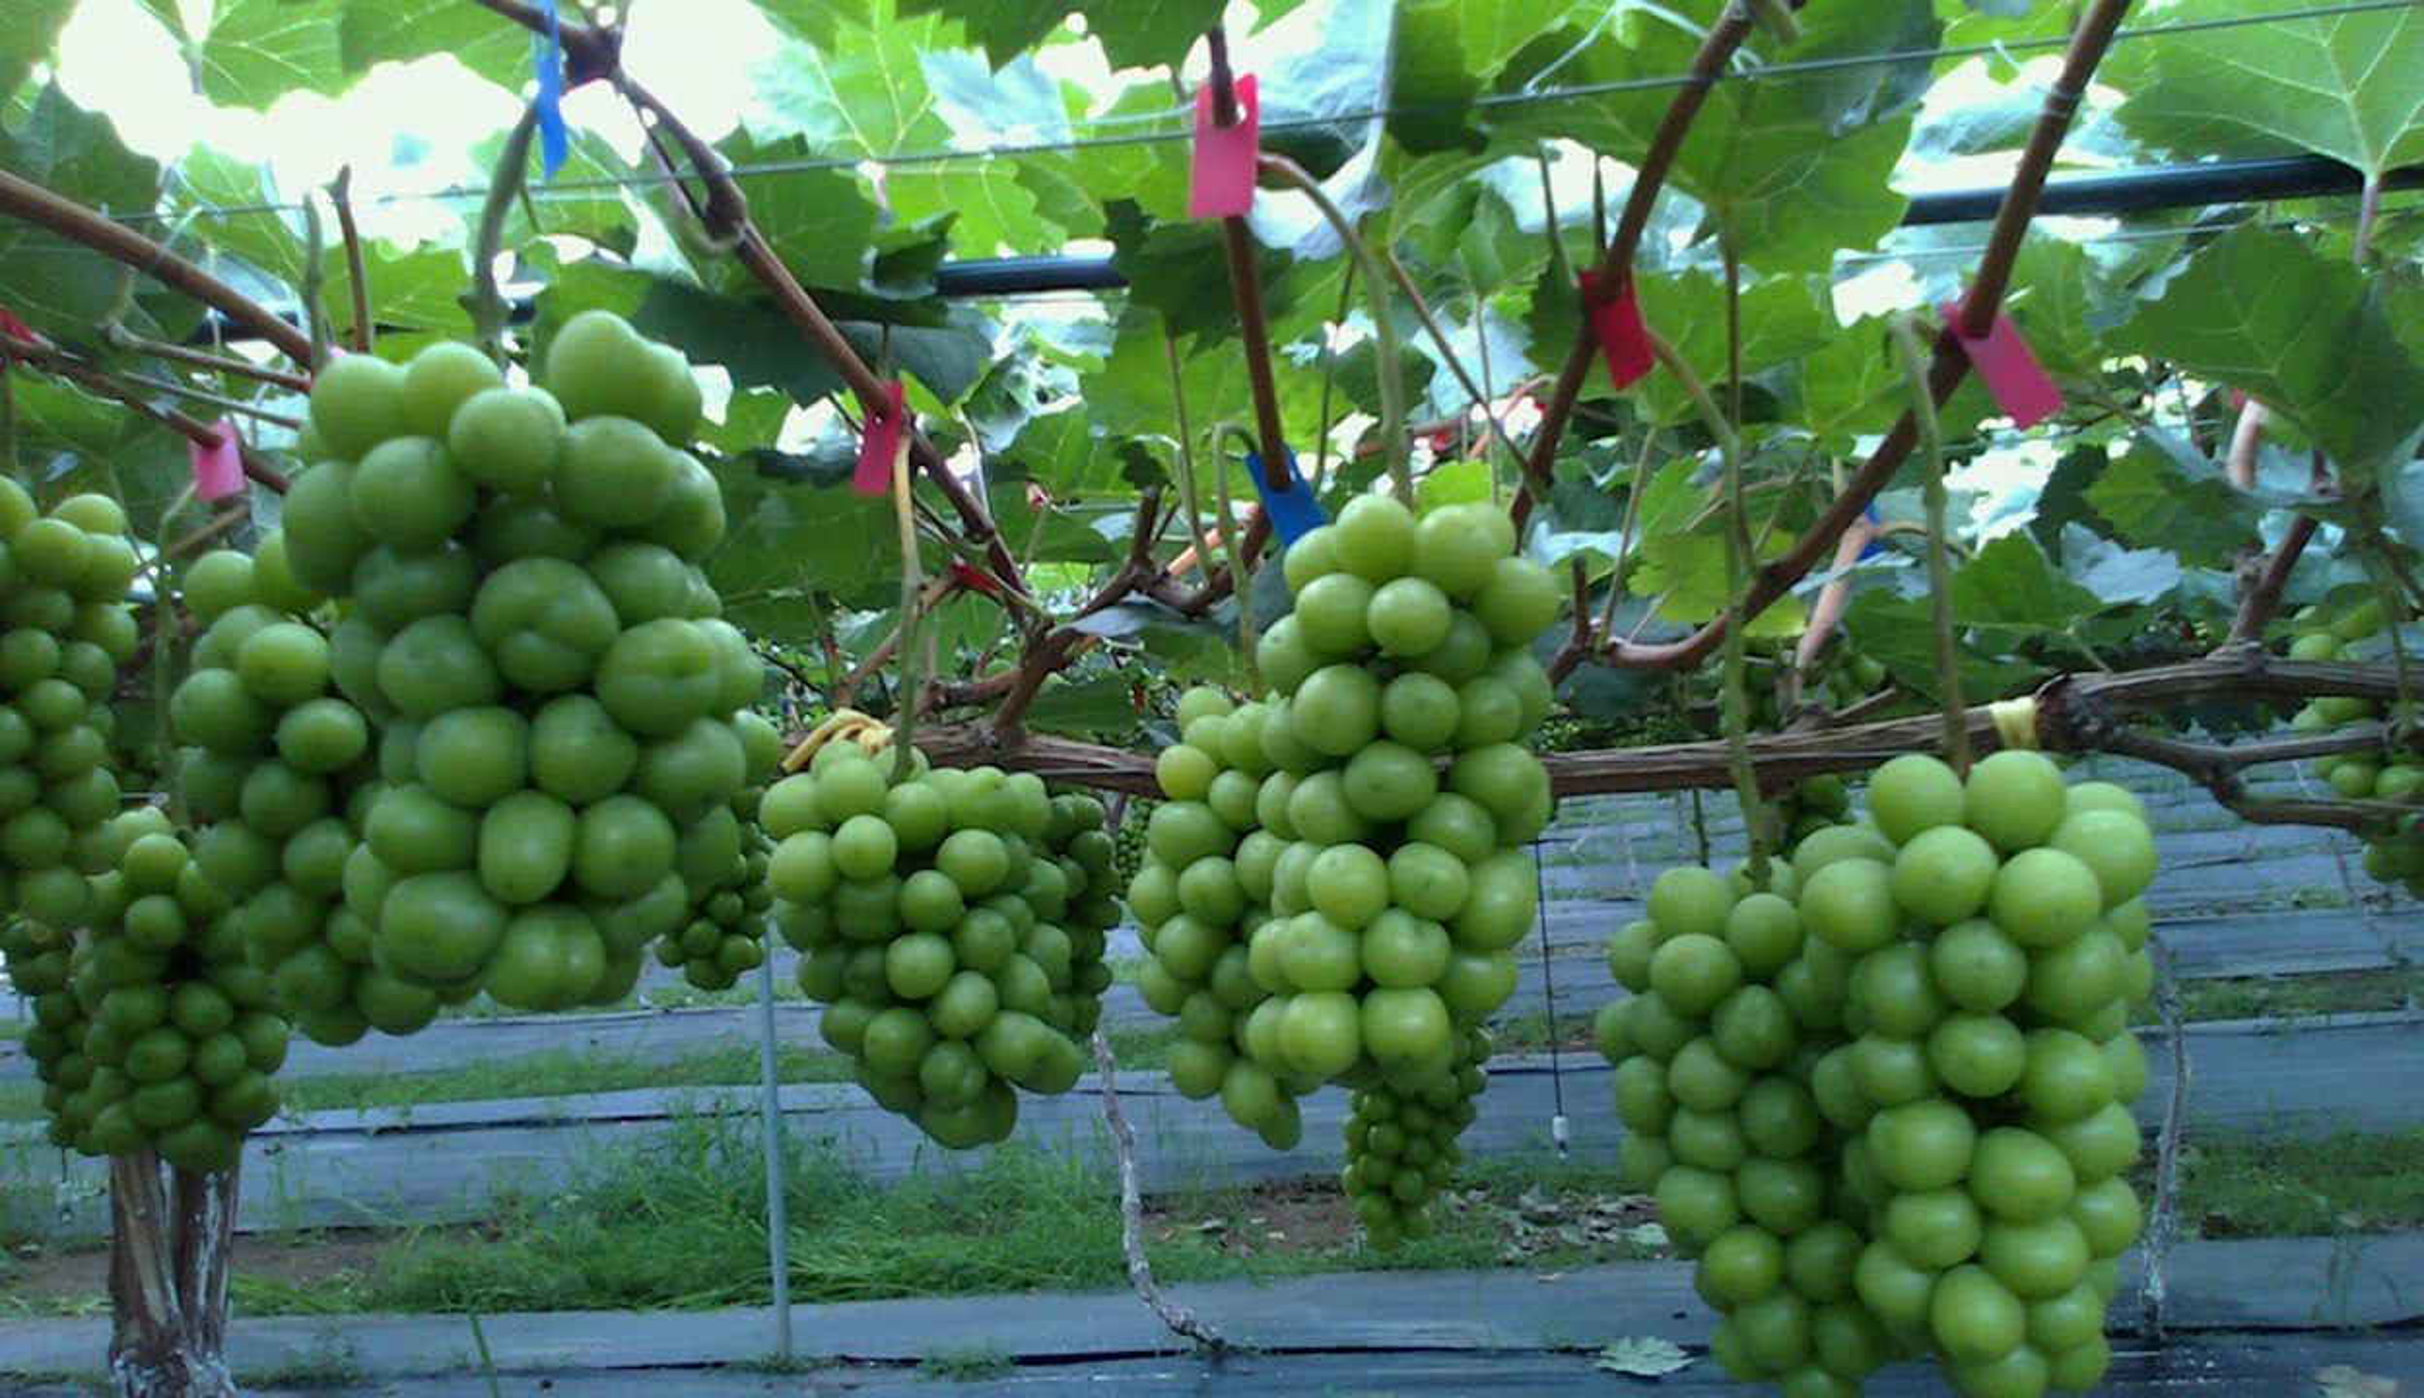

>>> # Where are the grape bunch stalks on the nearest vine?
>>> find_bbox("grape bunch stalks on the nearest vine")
[1313,196,1414,507]
[1210,423,1266,699]
[1666,355,1771,887]
[303,161,371,367]
[151,489,194,833]
[0,346,16,476]
[1892,334,1971,777]
[890,472,926,781]
[458,113,542,363]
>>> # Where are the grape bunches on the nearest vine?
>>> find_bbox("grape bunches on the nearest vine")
[70,806,293,1171]
[1247,489,1554,1089]
[1123,685,1303,1151]
[1593,862,1890,1396]
[1791,746,2156,1396]
[0,478,138,922]
[757,742,1080,1149]
[280,313,779,1012]
[173,530,435,1048]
